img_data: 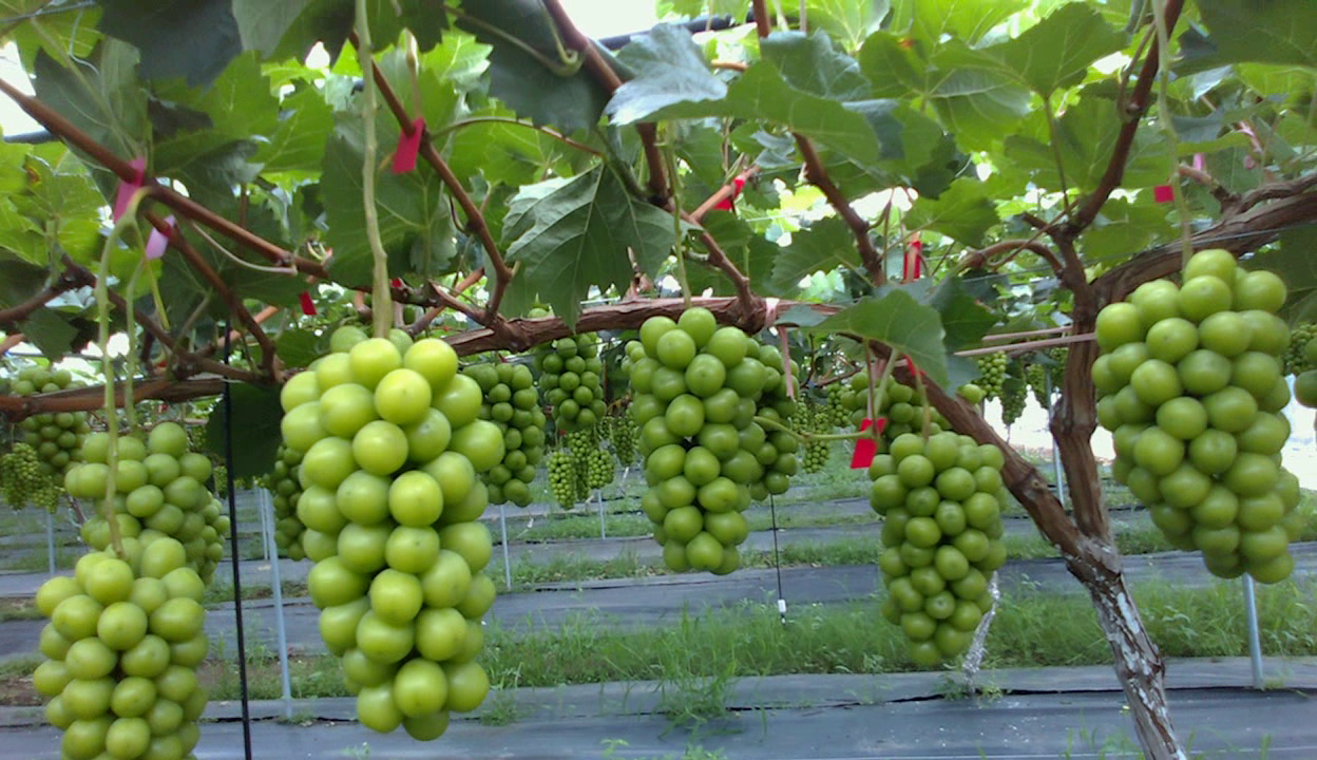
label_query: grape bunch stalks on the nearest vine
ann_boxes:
[125,261,145,436]
[915,370,931,438]
[1171,165,1218,265]
[98,185,154,560]
[673,192,692,308]
[356,1,393,338]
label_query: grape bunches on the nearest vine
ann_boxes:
[1091,248,1301,586]
[281,325,504,740]
[33,537,208,759]
[64,422,211,568]
[630,307,767,575]
[870,431,1008,665]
